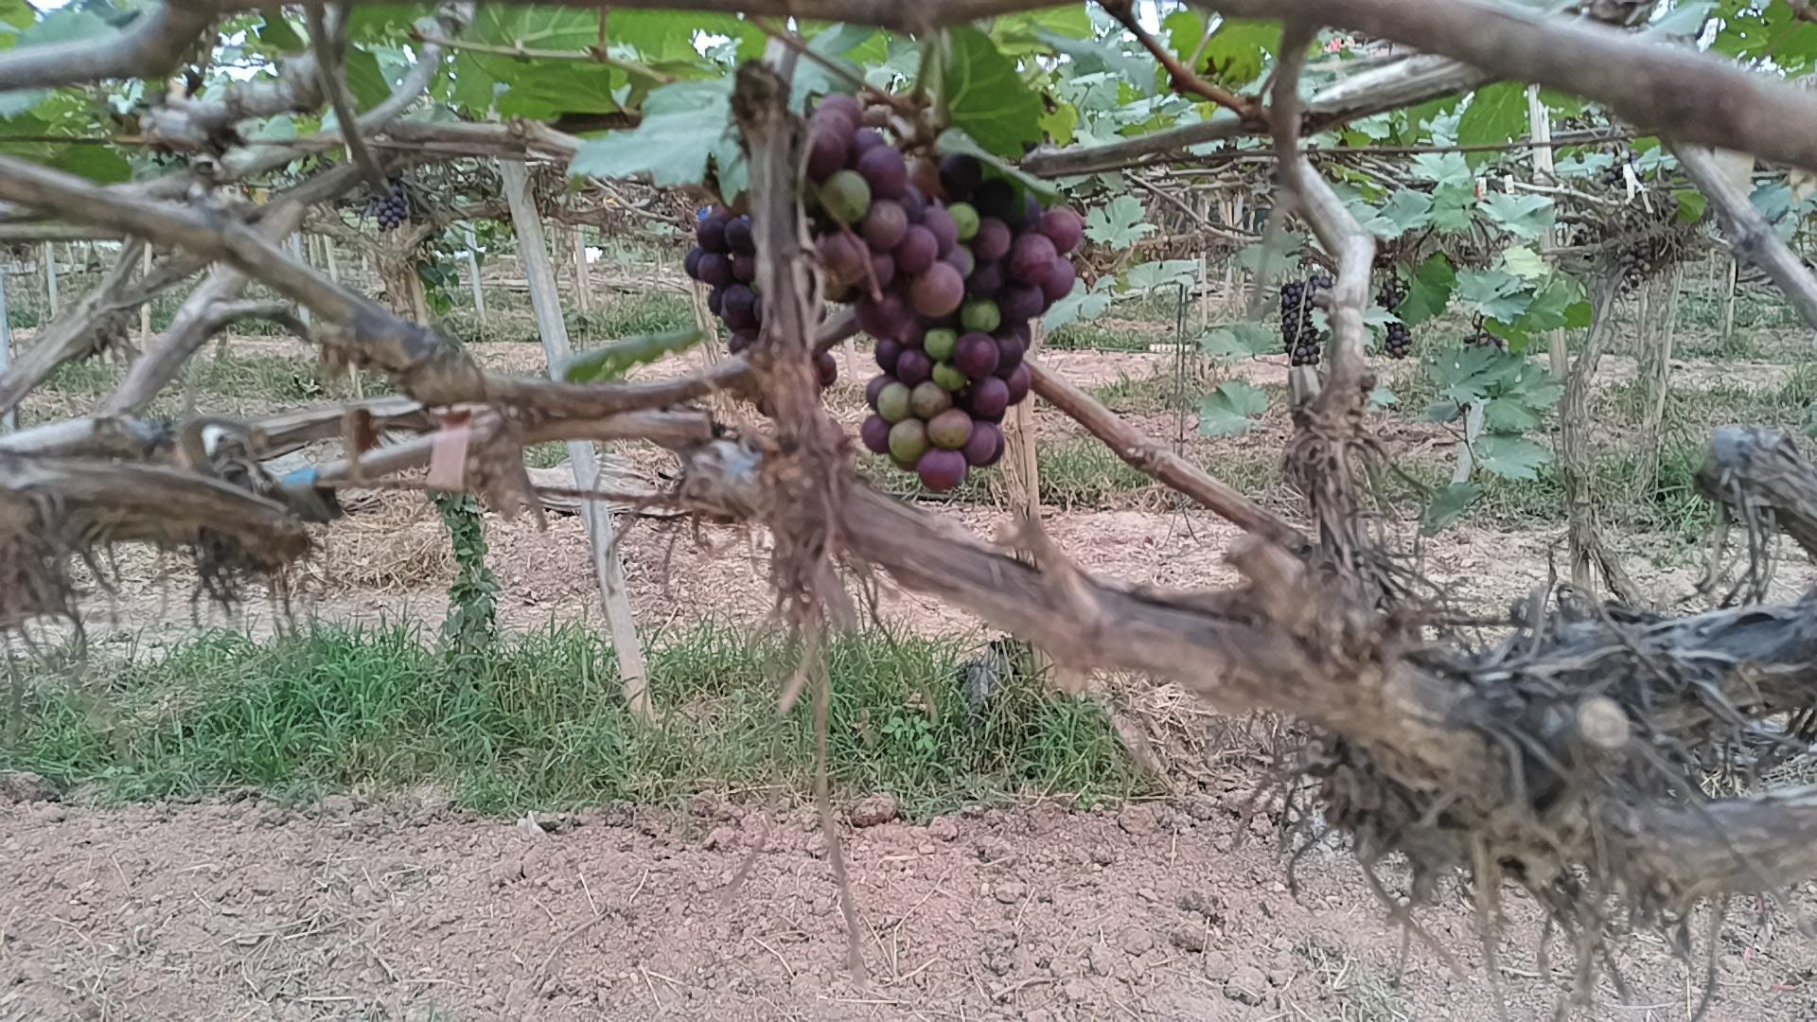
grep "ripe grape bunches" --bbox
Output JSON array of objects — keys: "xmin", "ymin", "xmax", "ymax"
[
  {"xmin": 1374, "ymin": 268, "xmax": 1413, "ymax": 359},
  {"xmin": 812, "ymin": 339, "xmax": 838, "ymax": 390},
  {"xmin": 684, "ymin": 205, "xmax": 763, "ymax": 354},
  {"xmin": 1279, "ymin": 270, "xmax": 1332, "ymax": 365},
  {"xmin": 366, "ymin": 173, "xmax": 412, "ymax": 231},
  {"xmin": 1452, "ymin": 331, "xmax": 1518, "ymax": 394}
]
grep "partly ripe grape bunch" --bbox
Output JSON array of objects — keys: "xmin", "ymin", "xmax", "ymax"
[{"xmin": 807, "ymin": 97, "xmax": 1082, "ymax": 492}]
